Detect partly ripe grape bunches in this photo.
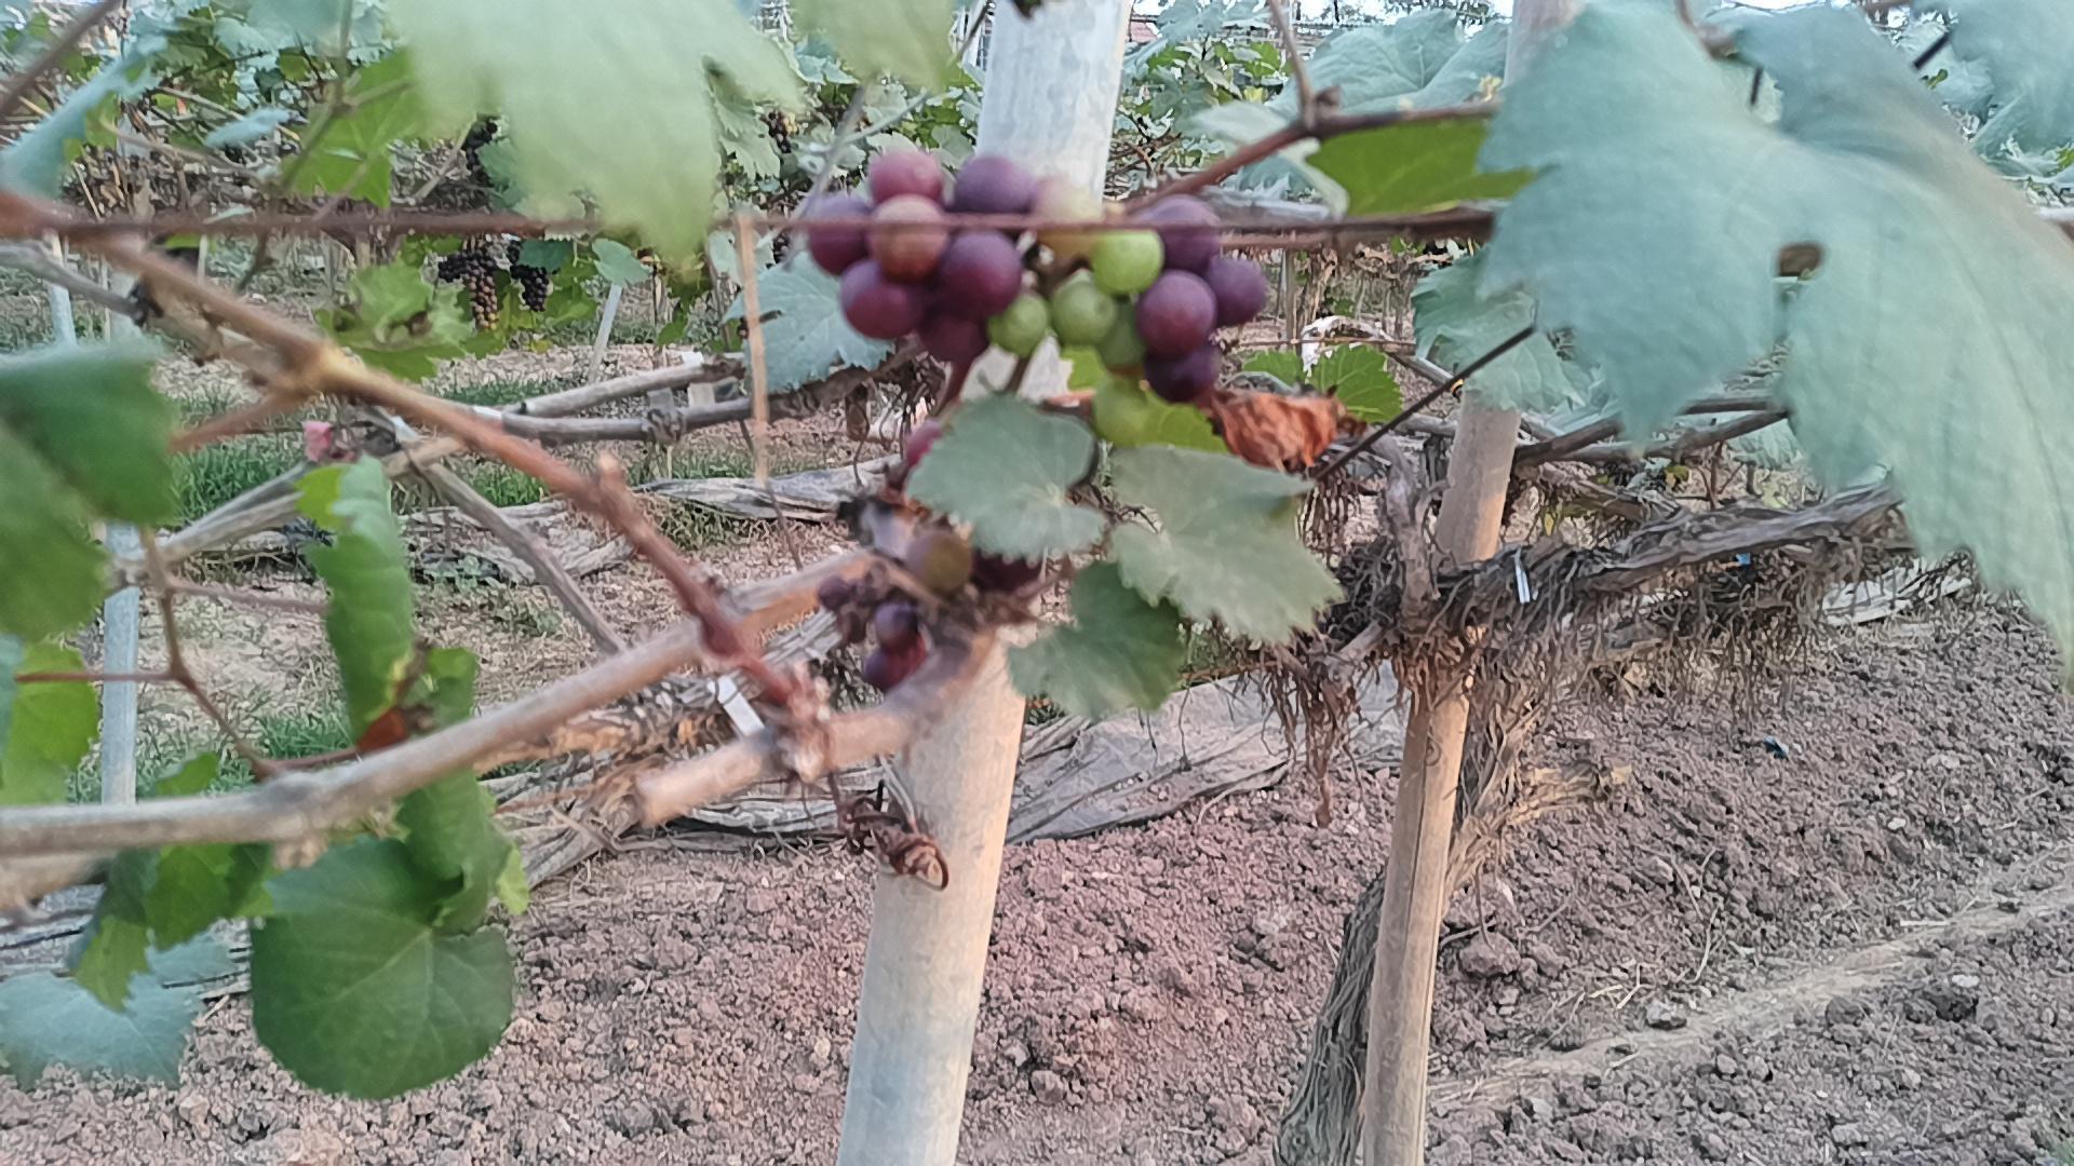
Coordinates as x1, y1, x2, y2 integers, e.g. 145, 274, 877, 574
439, 246, 498, 330
507, 239, 571, 312
799, 141, 1265, 695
